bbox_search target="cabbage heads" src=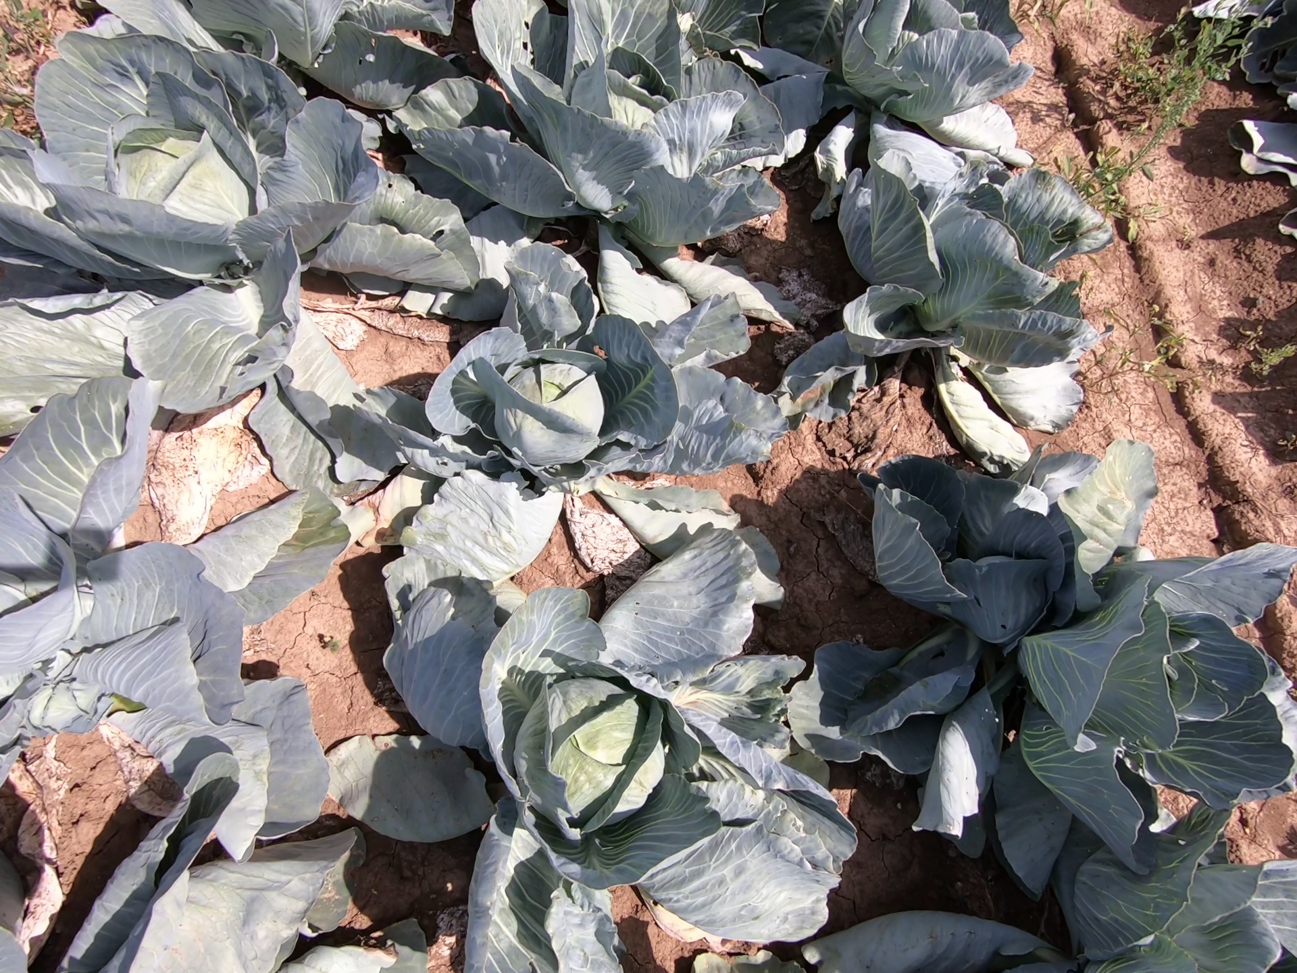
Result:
[1063,620,1169,730]
[111,134,253,240]
[513,677,665,828]
[495,361,602,463]
[571,76,669,180]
